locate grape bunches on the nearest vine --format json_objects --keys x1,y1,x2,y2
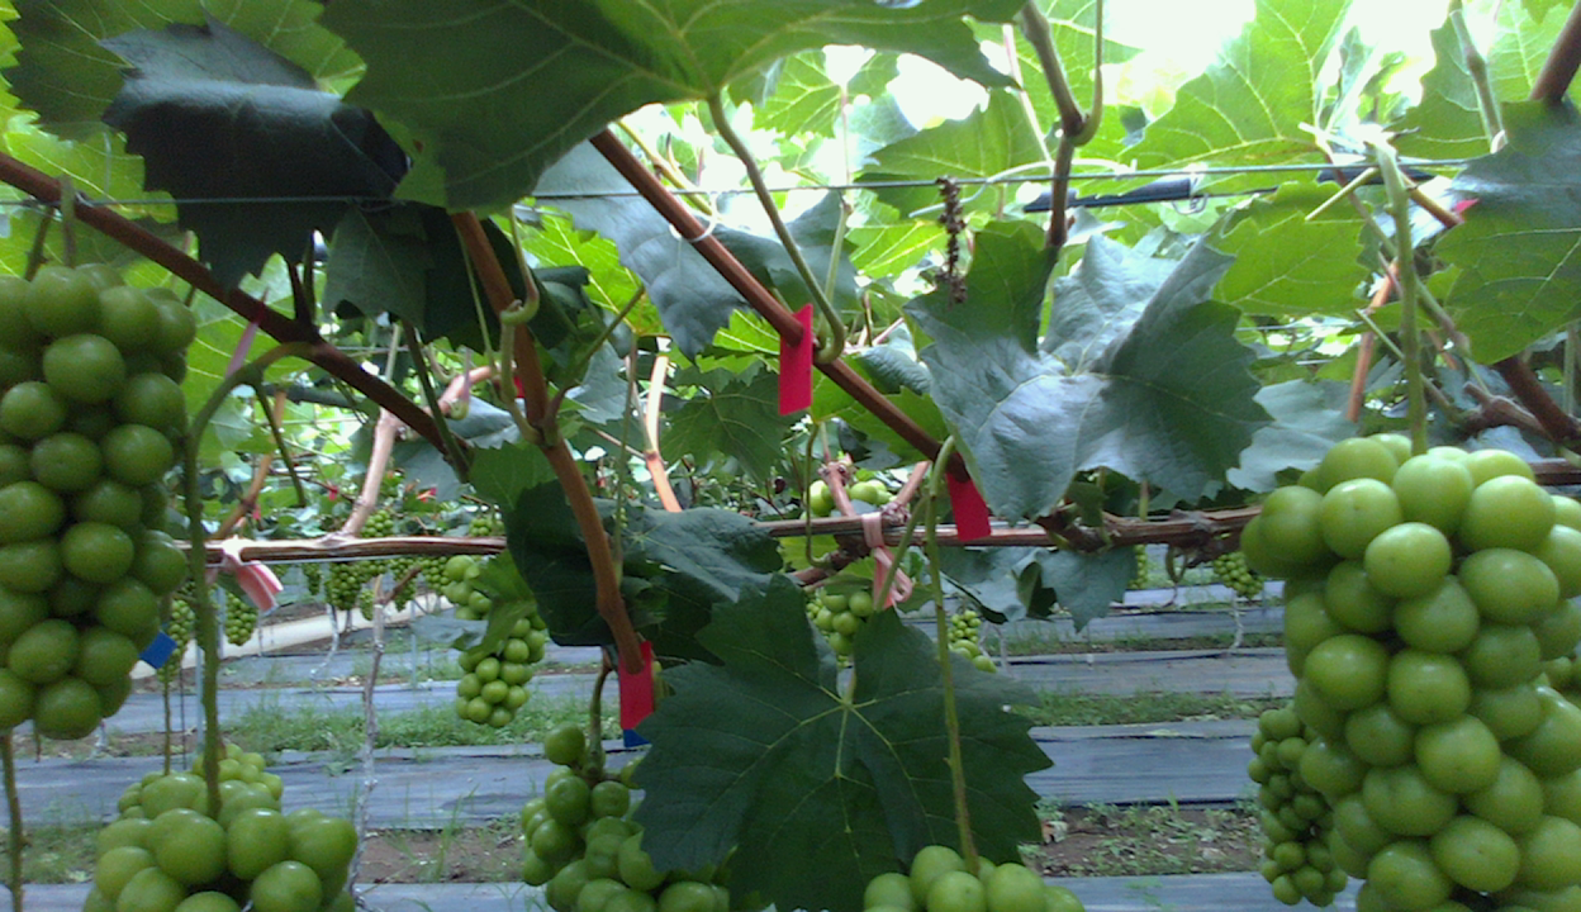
[
  {"x1": 545, "y1": 813, "x2": 728, "y2": 911},
  {"x1": 1236, "y1": 434, "x2": 1578, "y2": 911},
  {"x1": 860, "y1": 846, "x2": 1078, "y2": 911},
  {"x1": 3, "y1": 260, "x2": 193, "y2": 738},
  {"x1": 86, "y1": 768, "x2": 355, "y2": 911},
  {"x1": 516, "y1": 722, "x2": 637, "y2": 884}
]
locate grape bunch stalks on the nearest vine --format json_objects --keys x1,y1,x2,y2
[
  {"x1": 182, "y1": 339, "x2": 304, "y2": 812},
  {"x1": 1368, "y1": 152, "x2": 1472, "y2": 453},
  {"x1": 62, "y1": 177, "x2": 77, "y2": 266},
  {"x1": 588, "y1": 671, "x2": 607, "y2": 778},
  {"x1": 921, "y1": 437, "x2": 977, "y2": 874}
]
